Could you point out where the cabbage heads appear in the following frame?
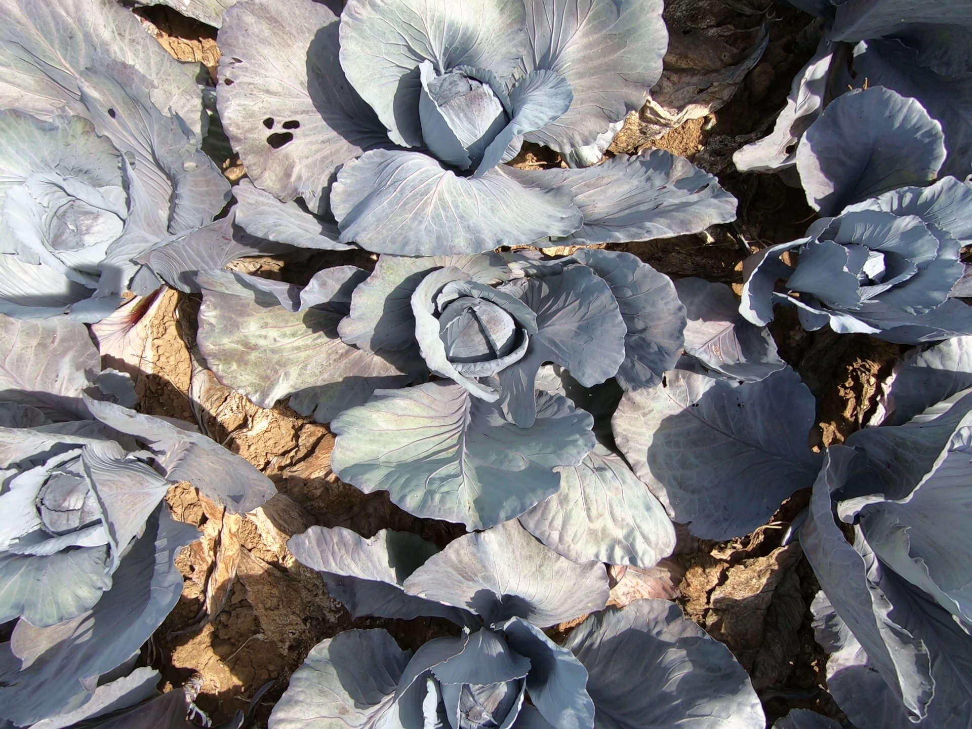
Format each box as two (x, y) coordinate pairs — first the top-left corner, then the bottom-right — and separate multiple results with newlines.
(435, 294), (518, 370)
(44, 186), (152, 276)
(422, 74), (510, 167)
(443, 631), (522, 728)
(34, 456), (142, 546)
(824, 248), (886, 299)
